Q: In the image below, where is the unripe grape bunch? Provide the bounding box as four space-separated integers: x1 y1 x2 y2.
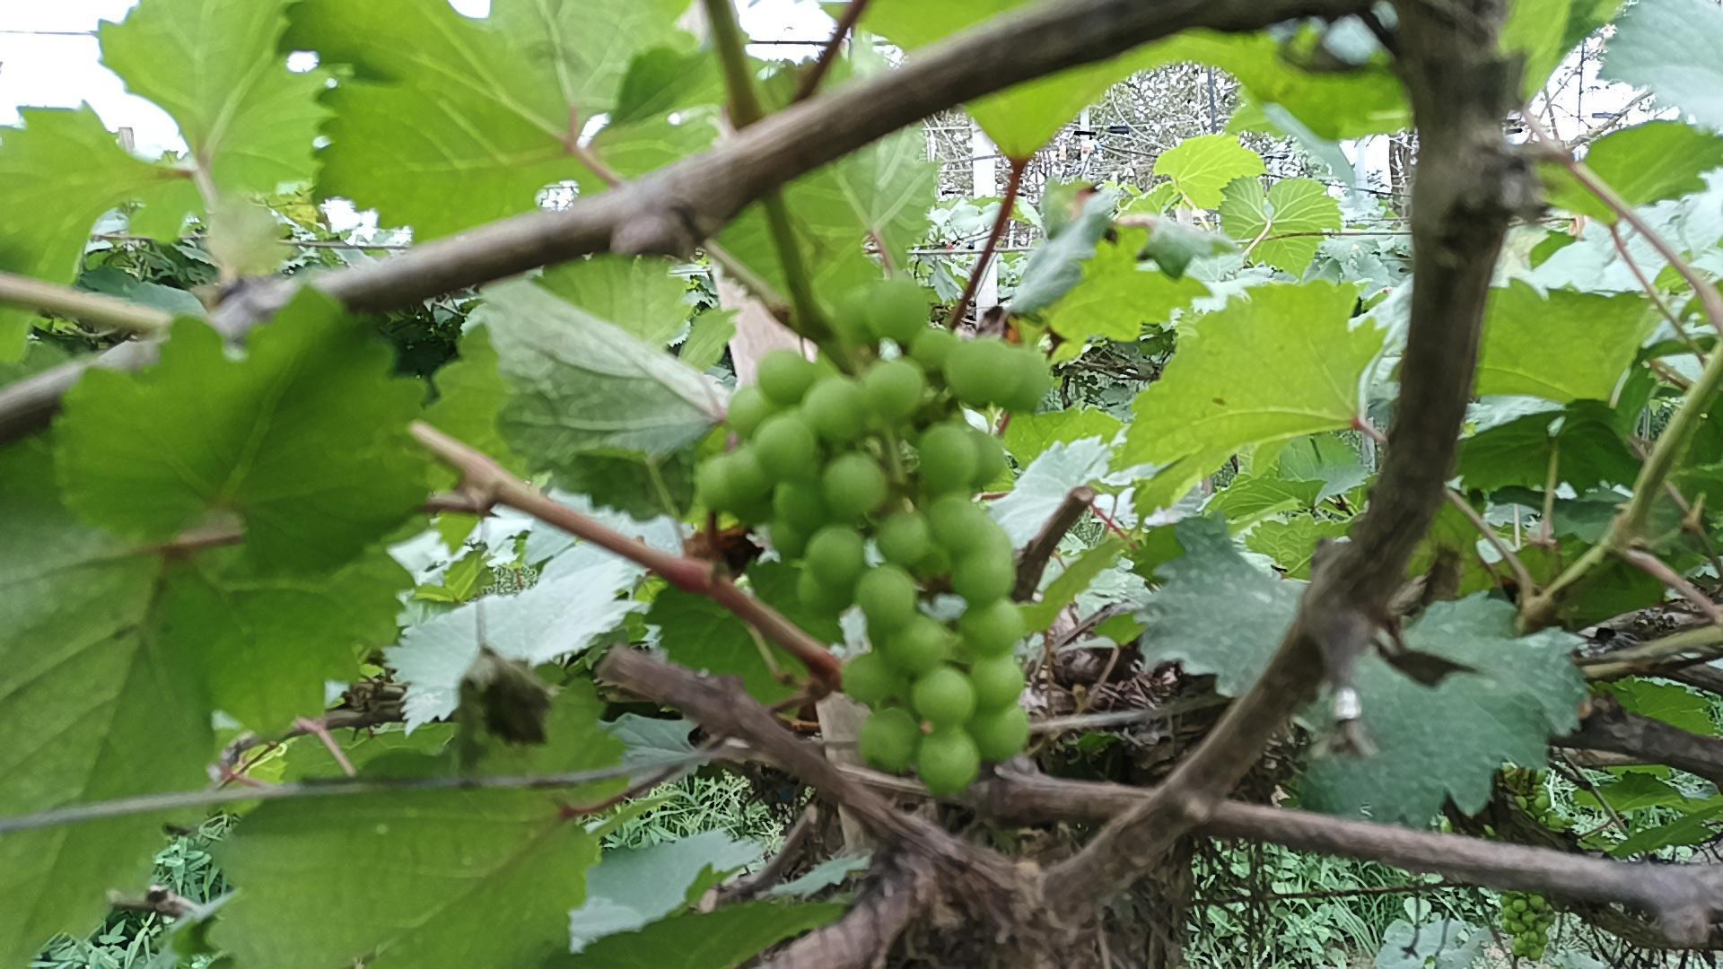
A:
697 283 1047 792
